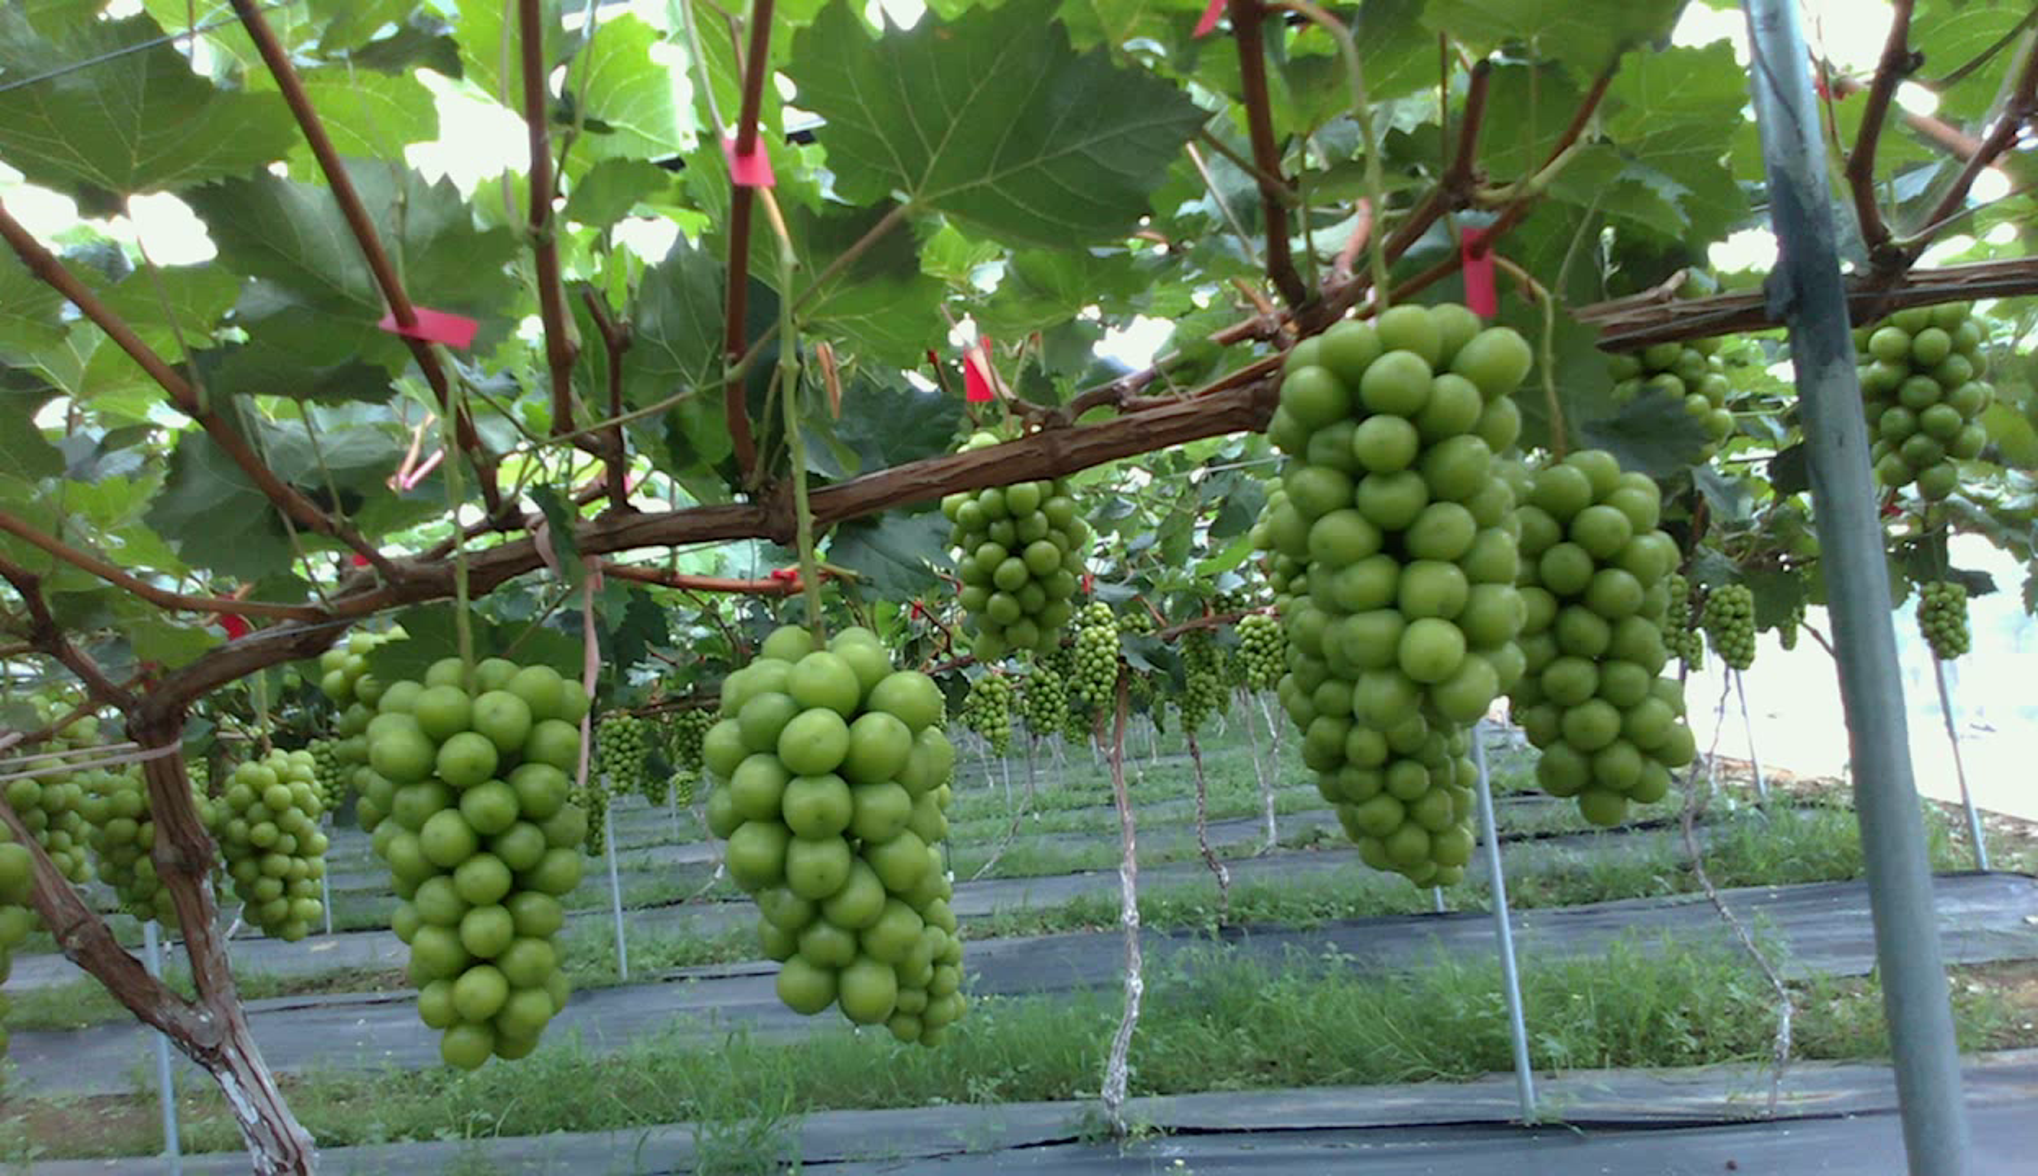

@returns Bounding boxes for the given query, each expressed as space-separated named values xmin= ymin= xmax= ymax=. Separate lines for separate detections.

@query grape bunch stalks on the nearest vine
xmin=1267 ymin=0 xmax=1388 ymax=315
xmin=1494 ymin=256 xmax=1564 ymax=465
xmin=433 ymin=343 xmax=475 ymax=694
xmin=761 ymin=186 xmax=826 ymax=650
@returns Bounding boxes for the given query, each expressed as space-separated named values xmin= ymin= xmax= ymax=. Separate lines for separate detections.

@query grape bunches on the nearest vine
xmin=1275 ymin=598 xmax=1476 ymax=892
xmin=1267 ymin=301 xmax=1532 ymax=733
xmin=699 ymin=626 xmax=955 ymax=1026
xmin=1512 ymin=451 xmax=1698 ymax=828
xmin=364 ymin=657 xmax=590 ymax=1071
